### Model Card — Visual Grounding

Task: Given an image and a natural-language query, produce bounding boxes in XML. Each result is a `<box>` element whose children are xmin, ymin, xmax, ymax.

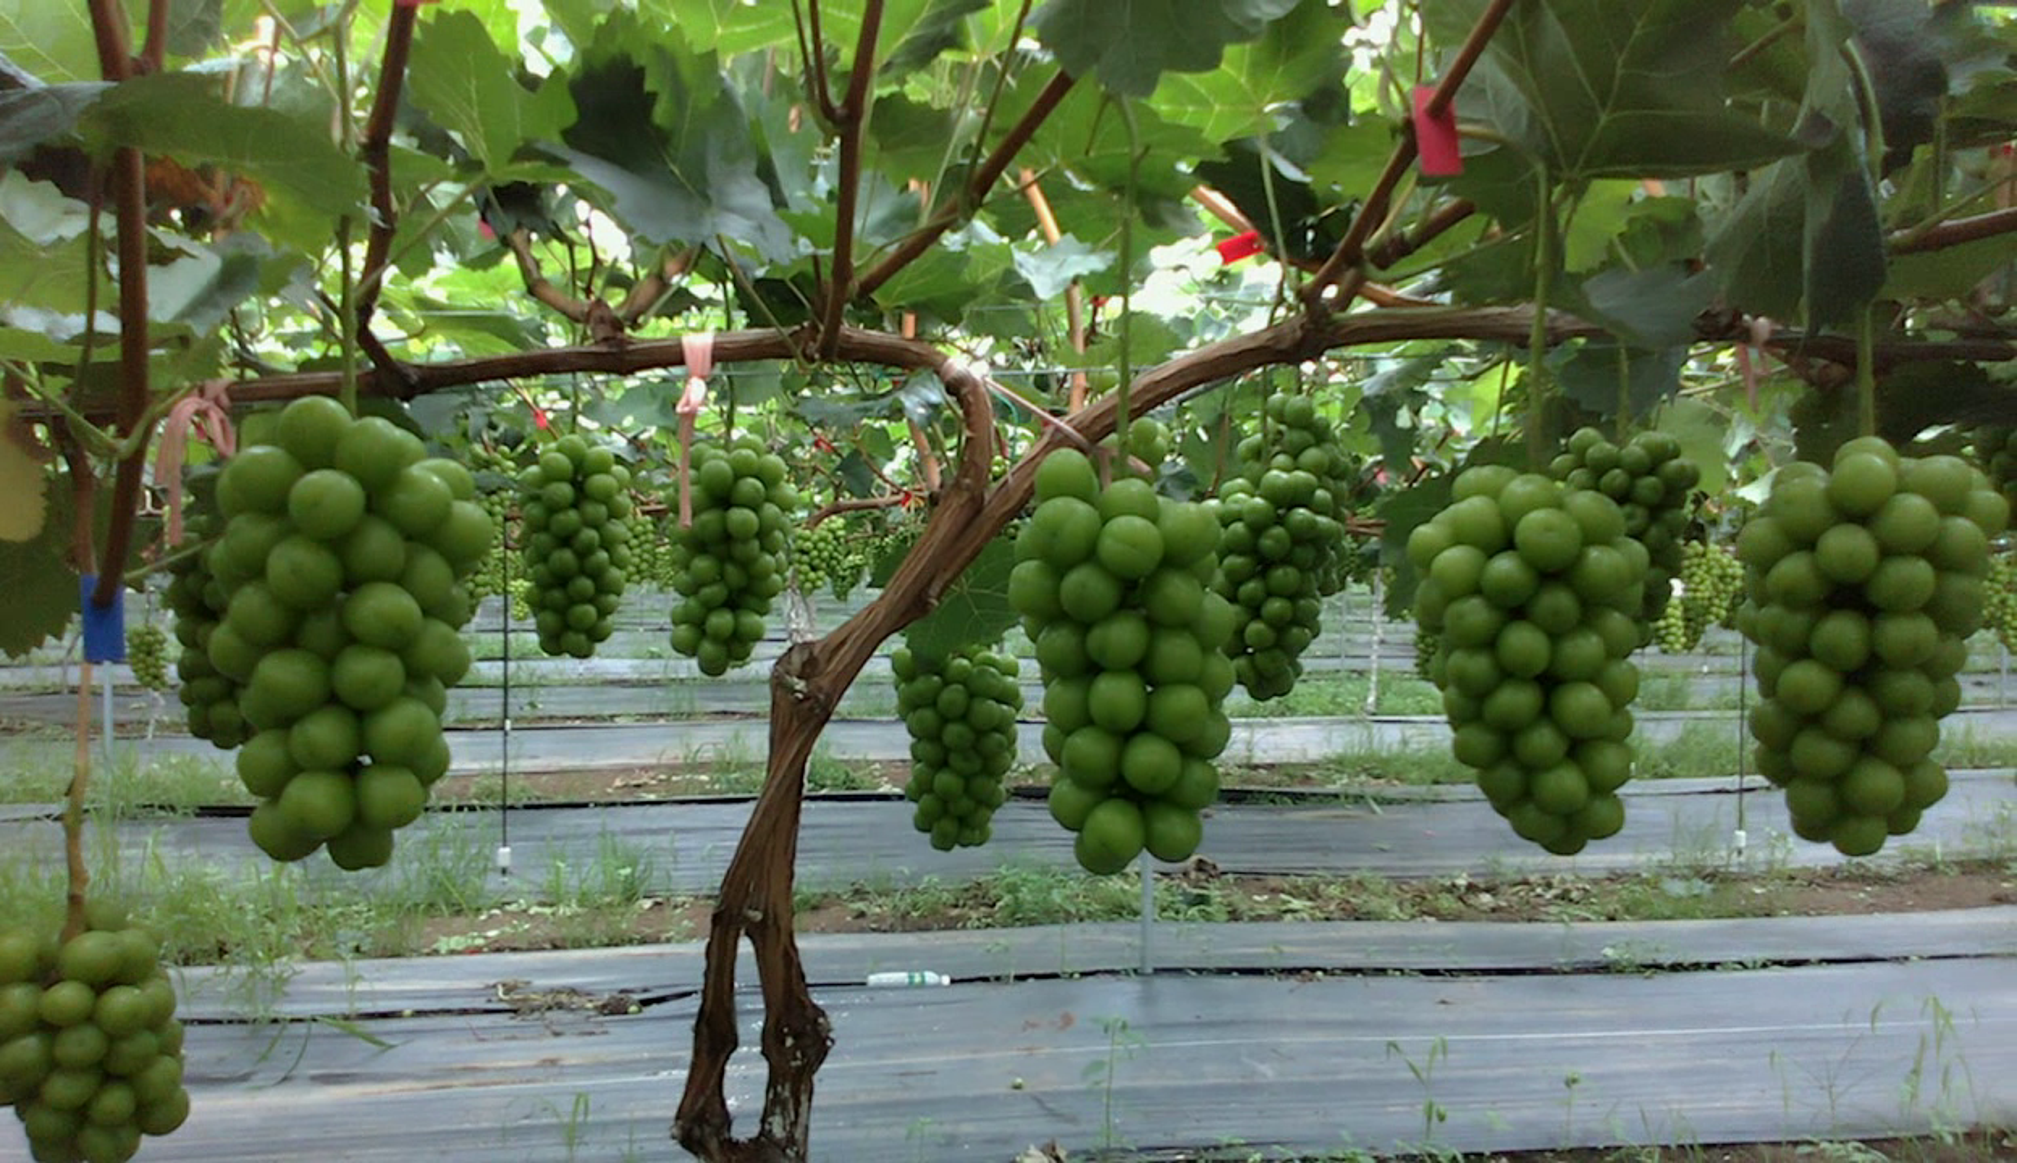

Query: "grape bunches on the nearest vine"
<box><xmin>0</xmin><ymin>901</ymin><xmax>189</xmax><ymax>1161</ymax></box>
<box><xmin>1736</xmin><ymin>435</ymin><xmax>2011</xmax><ymax>858</ymax></box>
<box><xmin>1007</xmin><ymin>447</ymin><xmax>1238</xmax><ymax>875</ymax></box>
<box><xmin>1403</xmin><ymin>464</ymin><xmax>1650</xmax><ymax>856</ymax></box>
<box><xmin>205</xmin><ymin>396</ymin><xmax>495</xmax><ymax>874</ymax></box>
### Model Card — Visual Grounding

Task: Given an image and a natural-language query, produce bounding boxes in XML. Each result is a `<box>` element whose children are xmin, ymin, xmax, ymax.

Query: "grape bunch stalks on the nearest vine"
<box><xmin>1459</xmin><ymin>124</ymin><xmax>1548</xmax><ymax>473</ymax></box>
<box><xmin>335</xmin><ymin>215</ymin><xmax>357</xmax><ymax>415</ymax></box>
<box><xmin>1109</xmin><ymin>92</ymin><xmax>1149</xmax><ymax>478</ymax></box>
<box><xmin>1854</xmin><ymin>307</ymin><xmax>1875</xmax><ymax>438</ymax></box>
<box><xmin>58</xmin><ymin>662</ymin><xmax>92</xmax><ymax>945</ymax></box>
